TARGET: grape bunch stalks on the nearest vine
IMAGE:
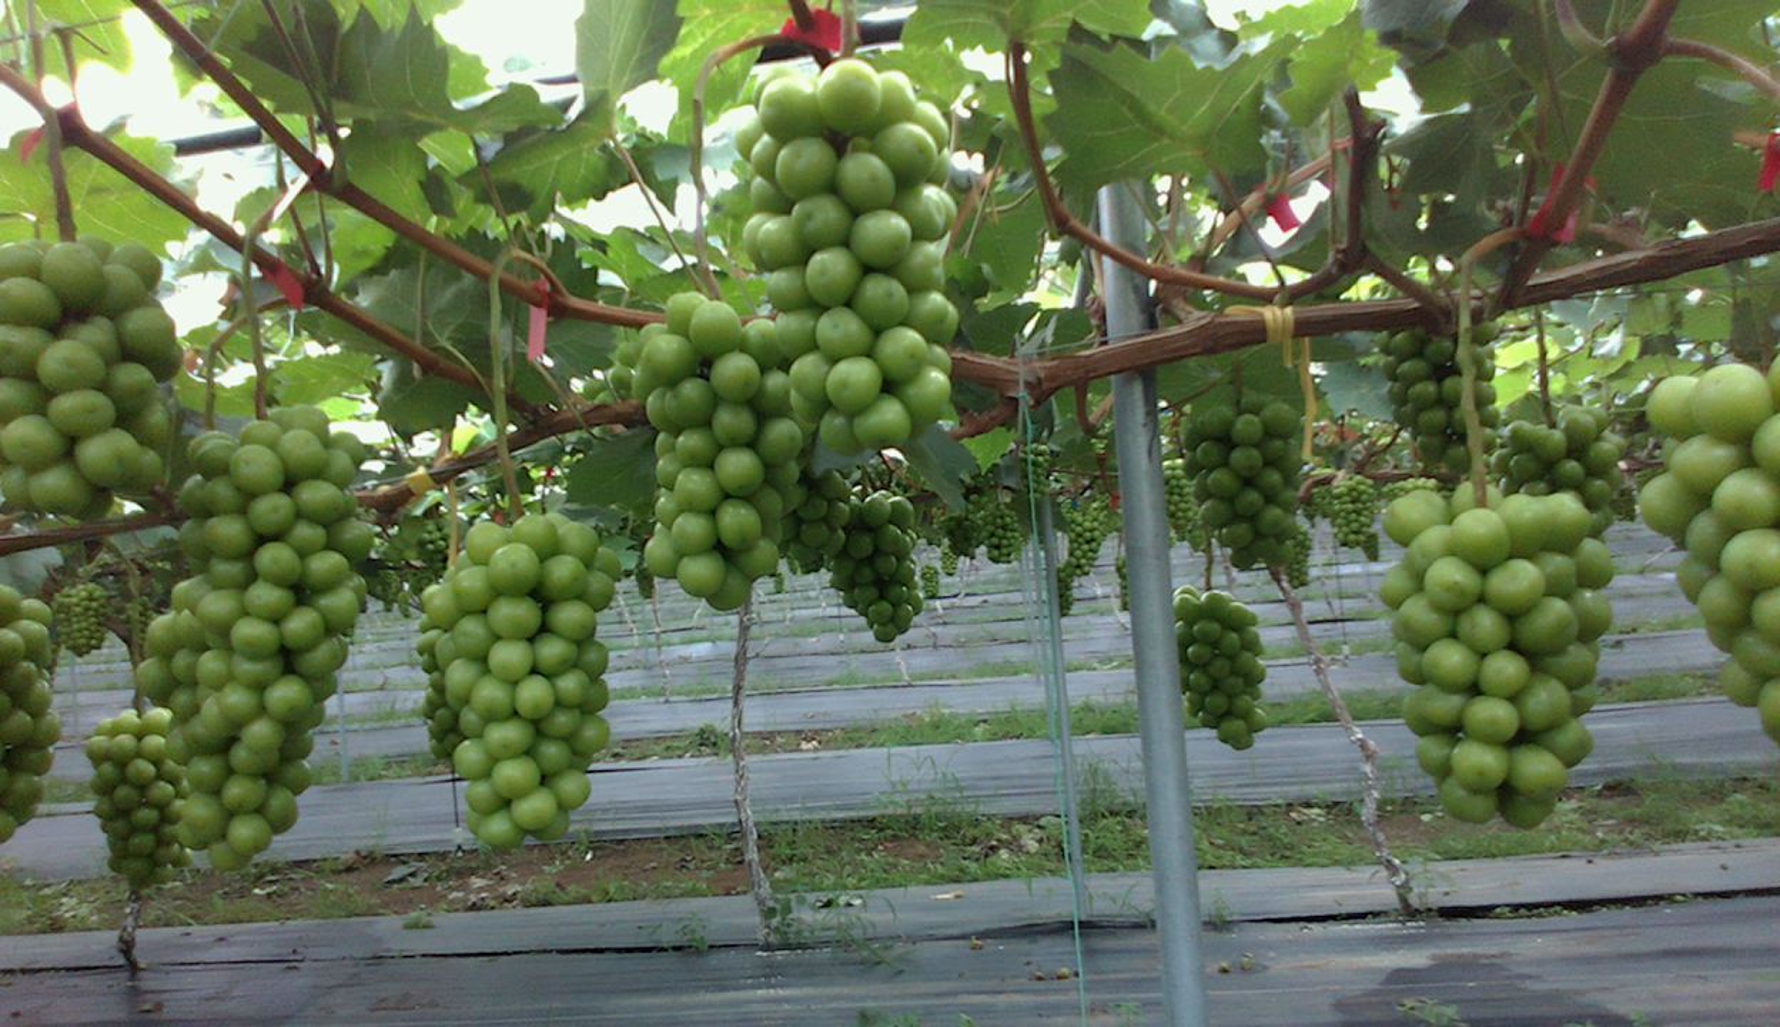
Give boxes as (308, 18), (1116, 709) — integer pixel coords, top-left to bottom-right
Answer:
(241, 210), (271, 415)
(840, 0), (857, 56)
(690, 33), (779, 298)
(1, 66), (74, 241)
(489, 247), (561, 518)
(1452, 224), (1519, 506)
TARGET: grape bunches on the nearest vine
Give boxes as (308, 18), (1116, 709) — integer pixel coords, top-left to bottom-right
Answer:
(130, 582), (315, 873)
(633, 291), (802, 610)
(1378, 482), (1615, 829)
(0, 234), (188, 523)
(1635, 357), (1779, 737)
(0, 585), (61, 843)
(180, 407), (375, 750)
(737, 61), (958, 459)
(425, 513), (620, 854)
